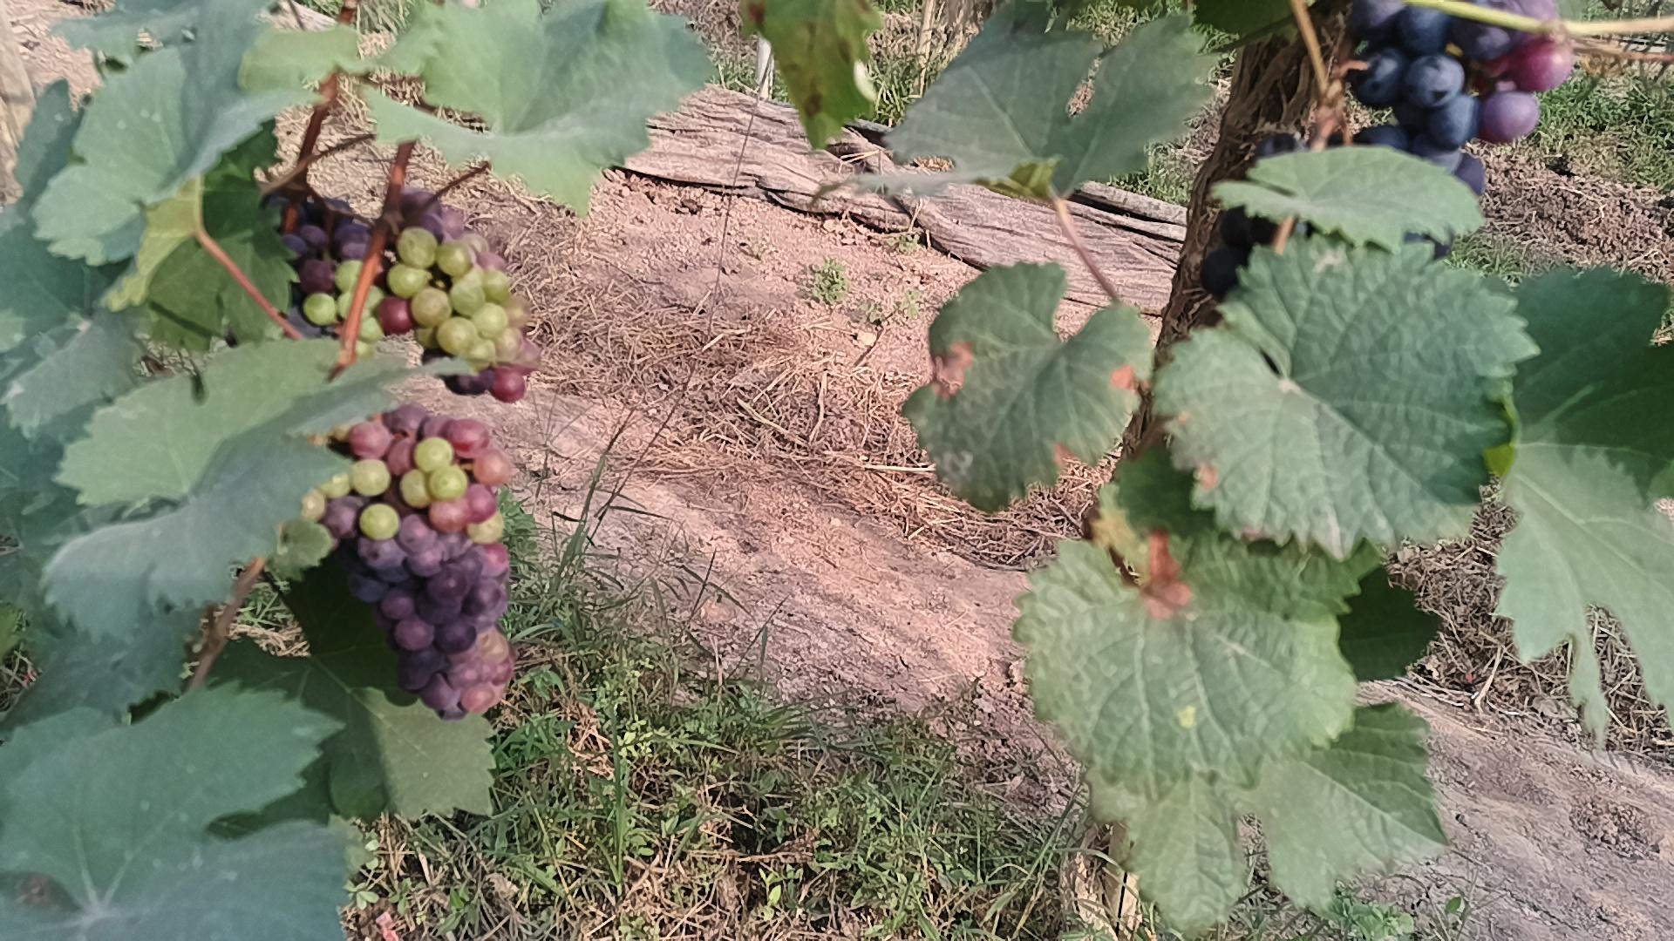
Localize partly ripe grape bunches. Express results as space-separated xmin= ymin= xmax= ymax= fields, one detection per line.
xmin=300 ymin=405 xmax=513 ymax=719
xmin=276 ymin=186 xmax=539 ymax=402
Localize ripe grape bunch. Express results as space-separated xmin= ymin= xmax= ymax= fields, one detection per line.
xmin=1201 ymin=0 xmax=1572 ymax=305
